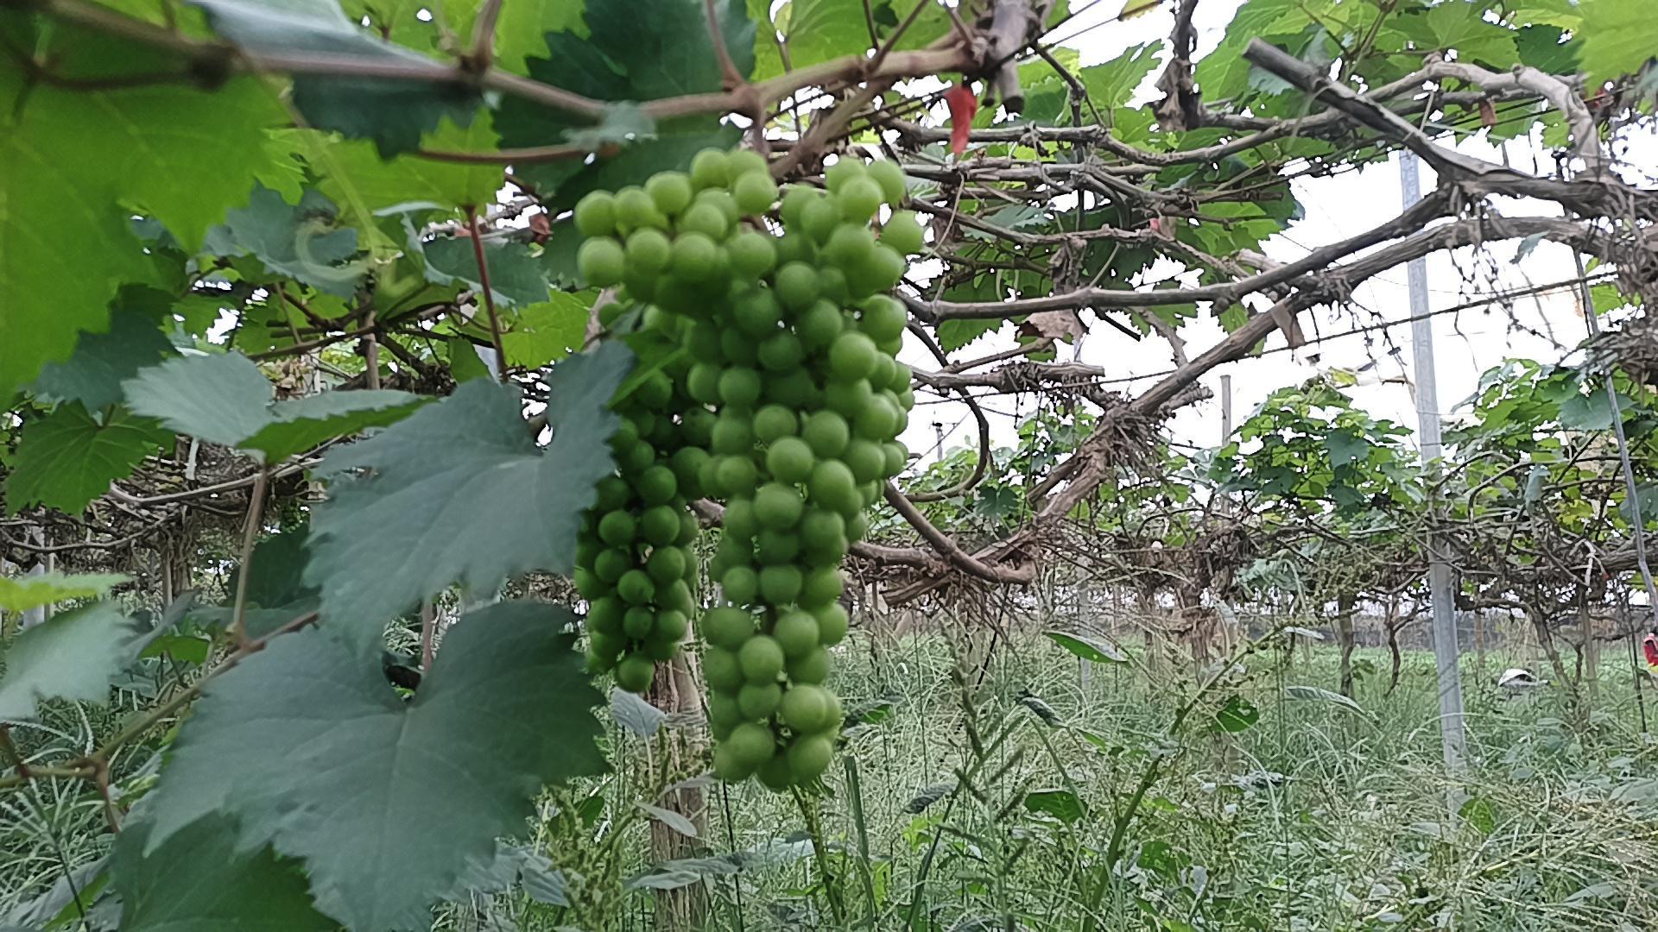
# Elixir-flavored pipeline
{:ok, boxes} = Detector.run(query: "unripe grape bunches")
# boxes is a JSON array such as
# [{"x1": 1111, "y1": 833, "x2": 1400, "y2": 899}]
[
  {"x1": 574, "y1": 150, "x2": 922, "y2": 790},
  {"x1": 574, "y1": 289, "x2": 712, "y2": 692}
]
